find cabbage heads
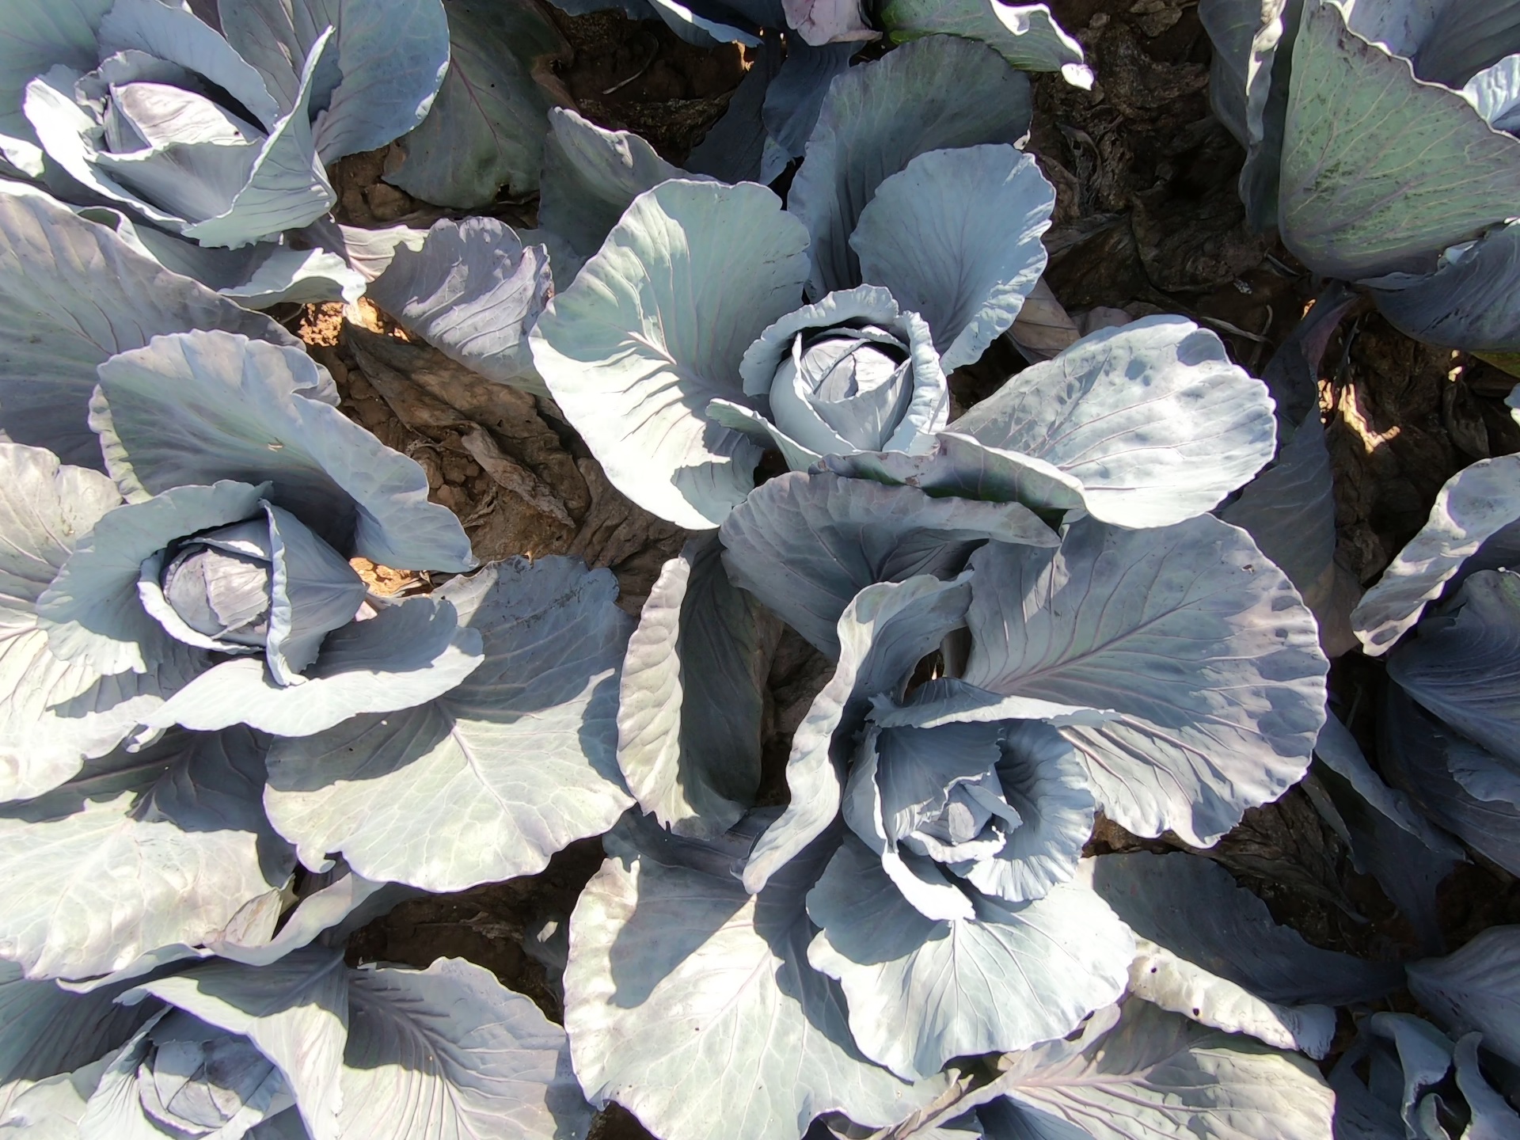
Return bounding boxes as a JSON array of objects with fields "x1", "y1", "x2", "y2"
[
  {"x1": 107, "y1": 85, "x2": 264, "y2": 219},
  {"x1": 150, "y1": 964, "x2": 335, "y2": 1134},
  {"x1": 779, "y1": 330, "x2": 922, "y2": 460},
  {"x1": 887, "y1": 729, "x2": 1000, "y2": 841},
  {"x1": 161, "y1": 520, "x2": 315, "y2": 647}
]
